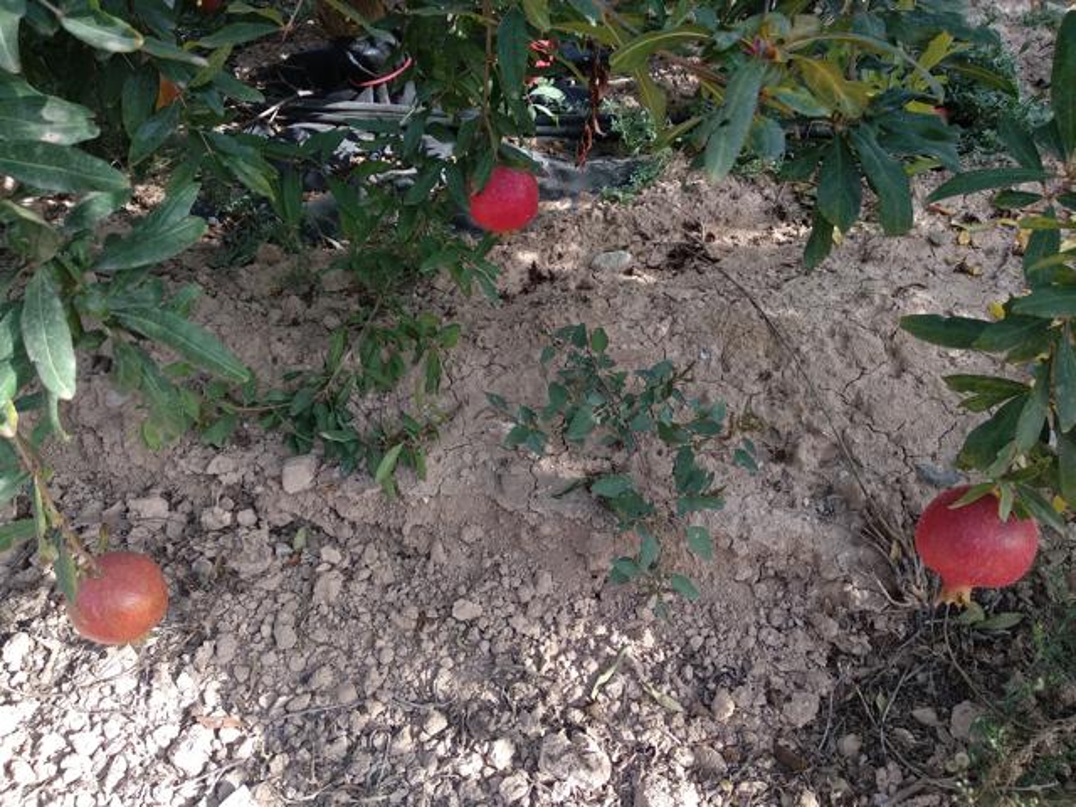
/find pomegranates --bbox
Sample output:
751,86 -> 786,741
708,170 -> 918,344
66,550 -> 170,651
913,484 -> 1037,609
469,165 -> 540,234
